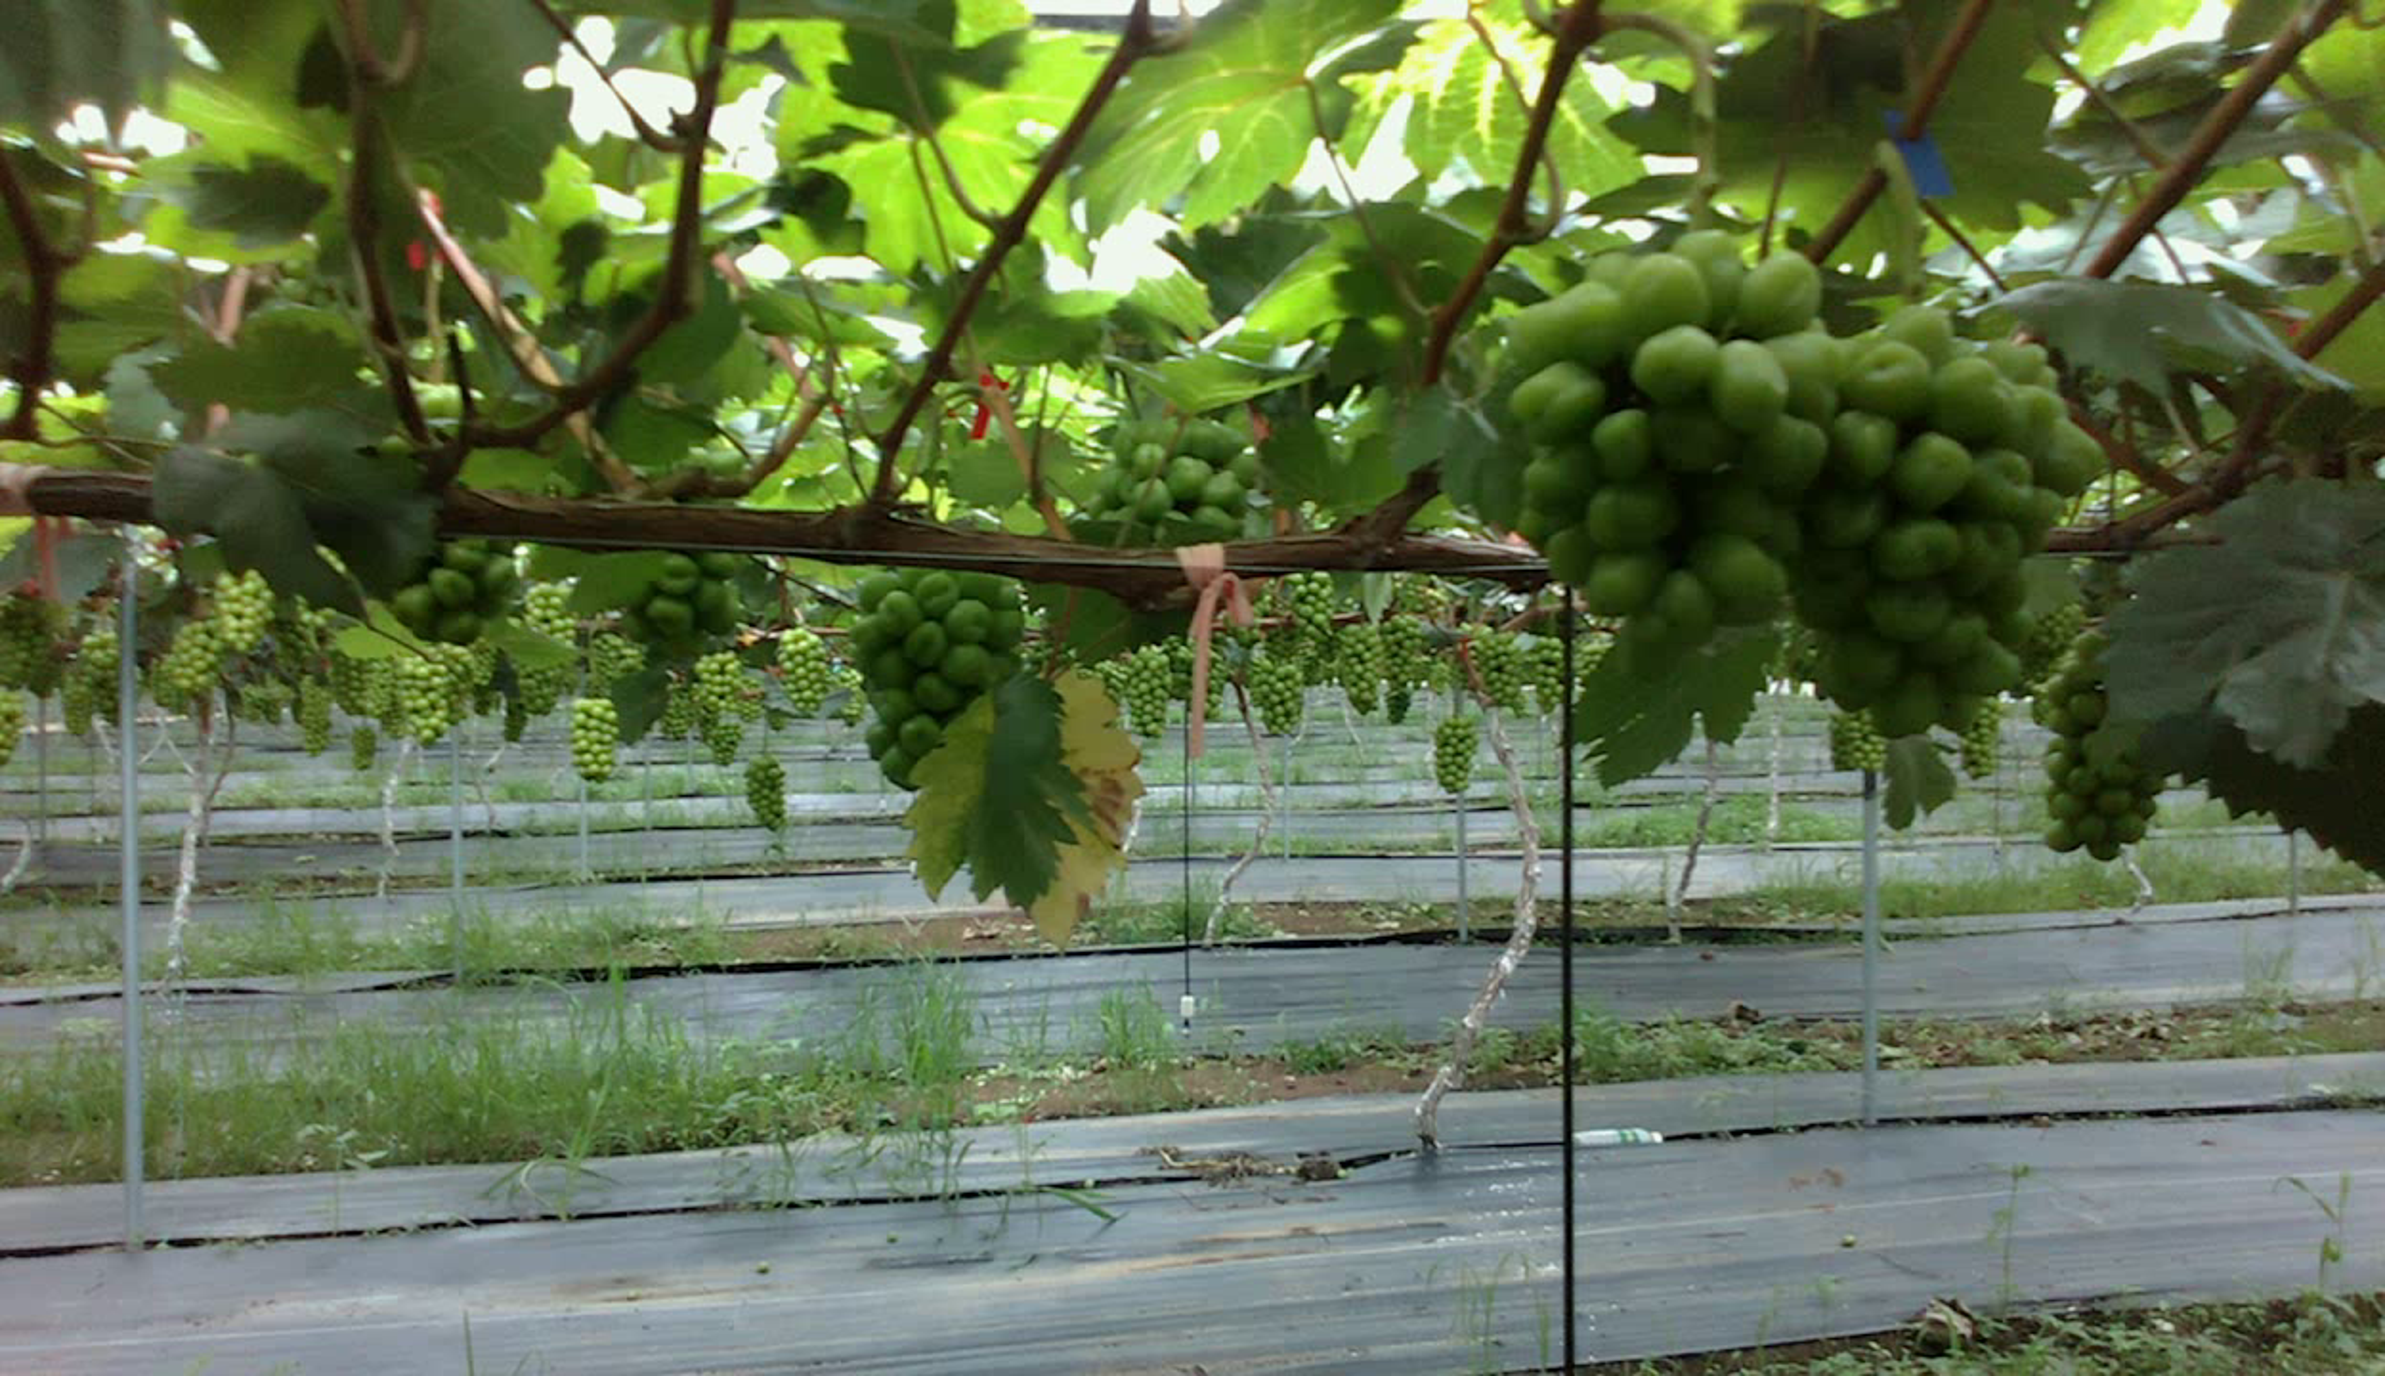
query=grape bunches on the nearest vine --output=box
[1506,229,1844,644]
[1789,306,2104,738]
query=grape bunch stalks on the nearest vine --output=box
[1877,145,1926,306]
[1603,10,1718,231]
